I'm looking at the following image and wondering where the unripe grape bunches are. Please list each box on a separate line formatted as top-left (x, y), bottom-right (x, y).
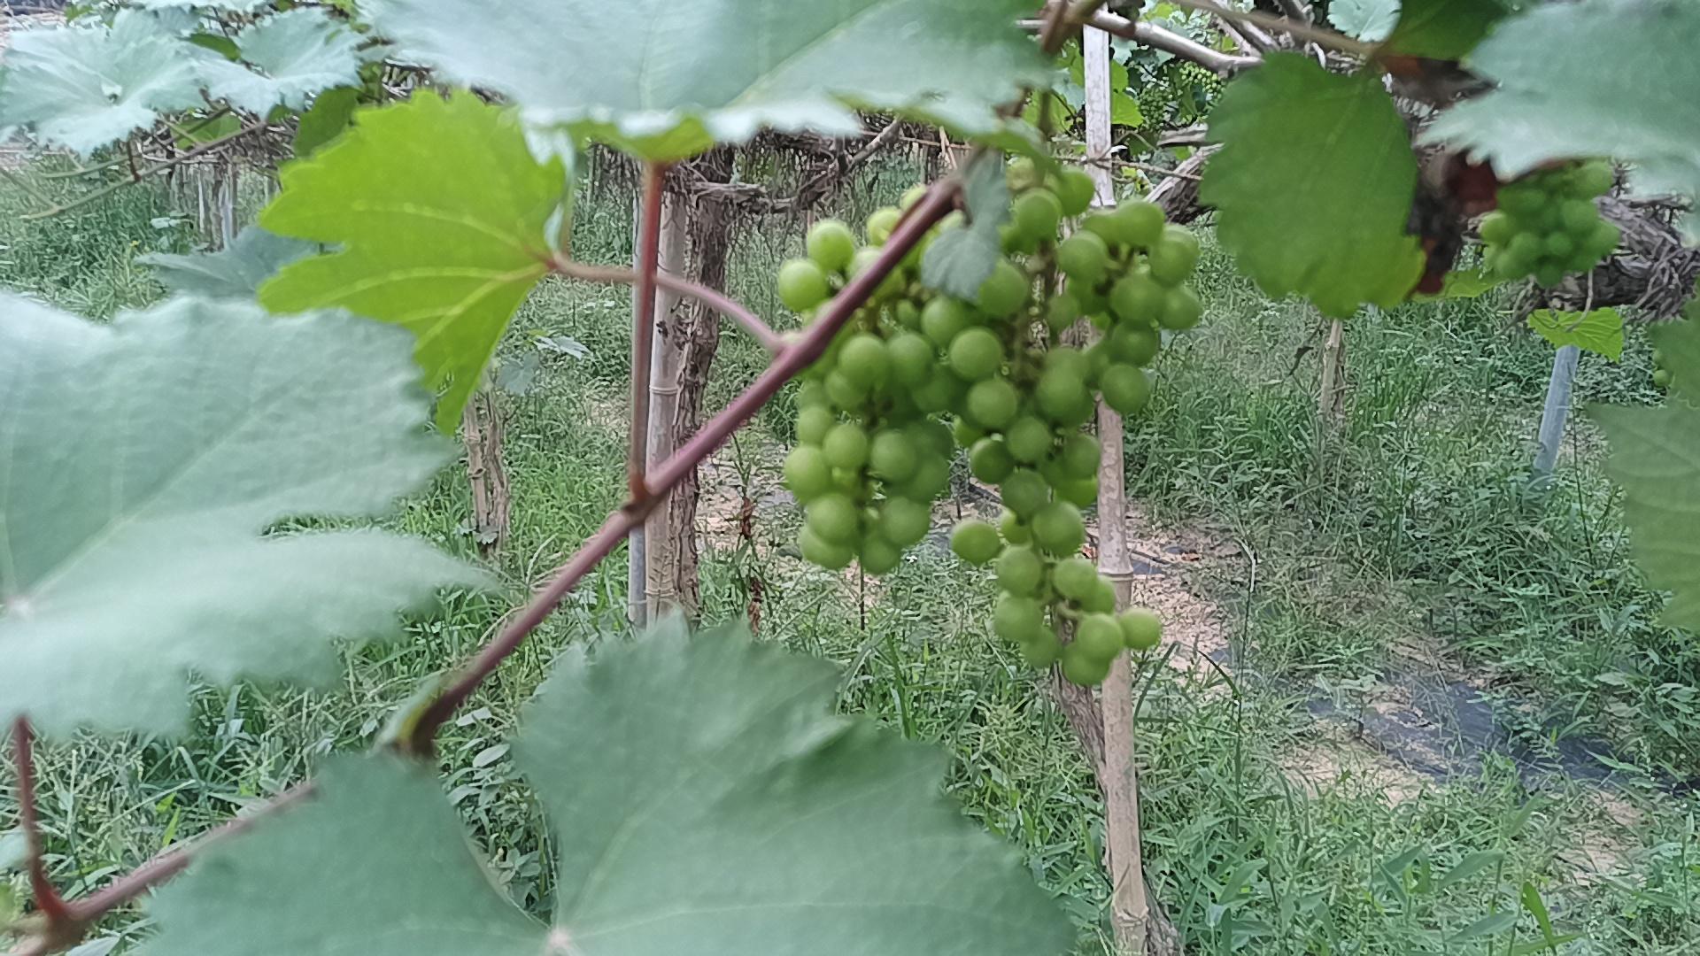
top-left (1136, 59), bottom-right (1224, 128)
top-left (825, 158), bottom-right (1201, 686)
top-left (1480, 161), bottom-right (1618, 287)
top-left (780, 181), bottom-right (966, 574)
